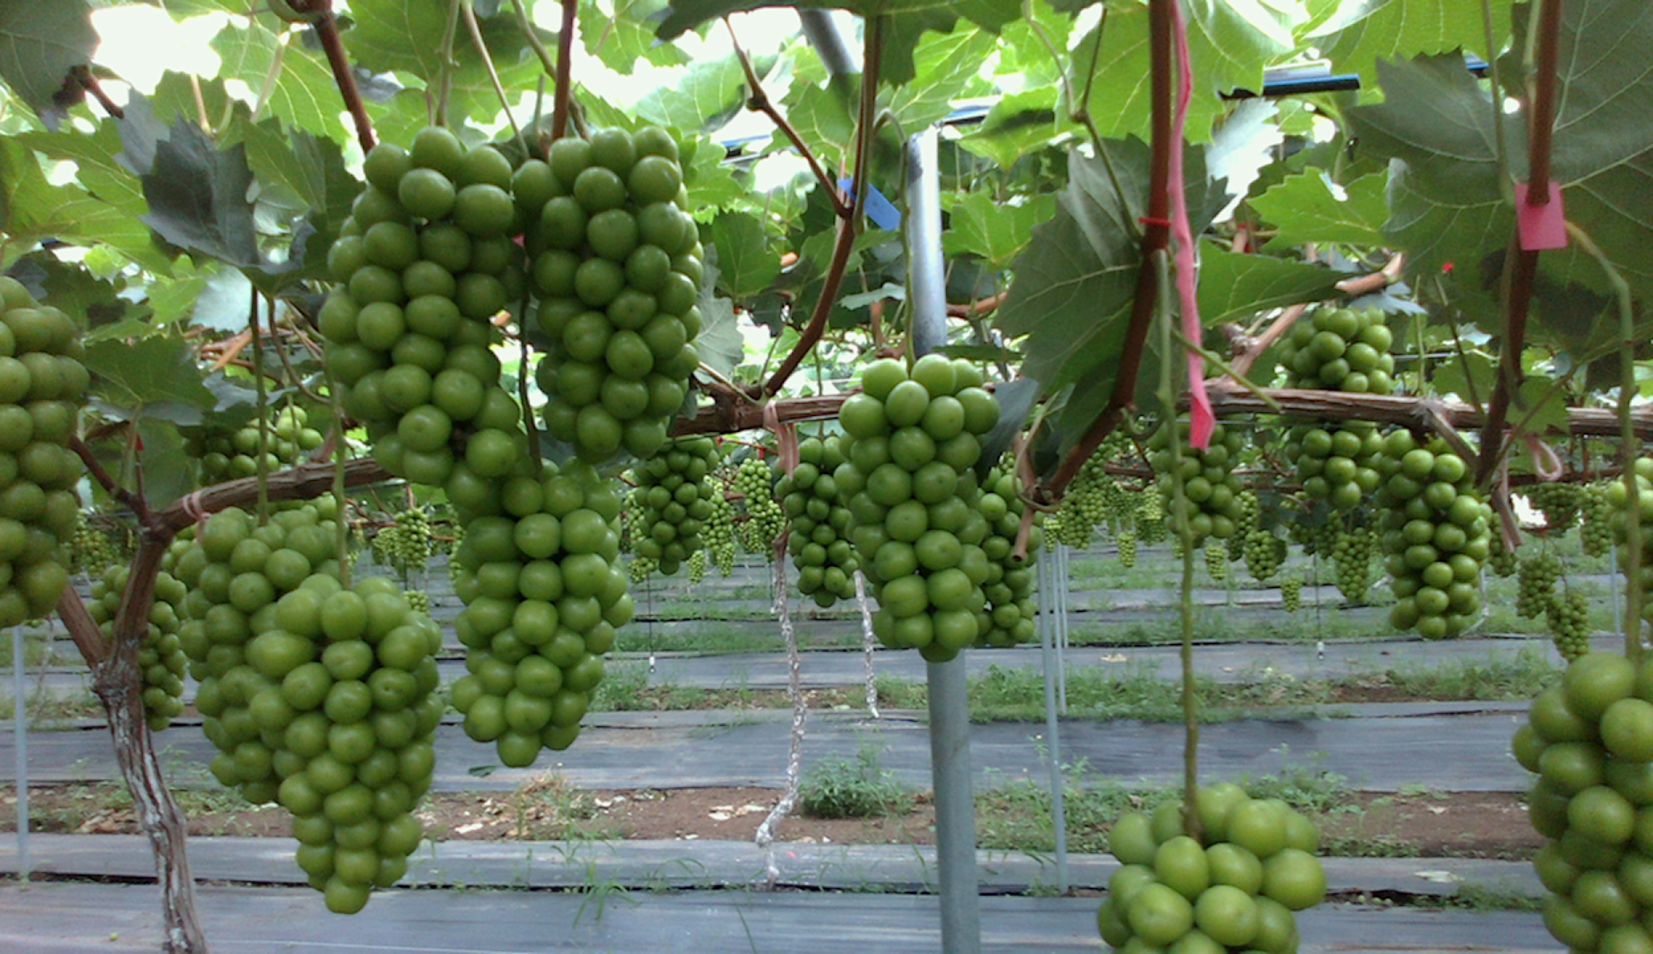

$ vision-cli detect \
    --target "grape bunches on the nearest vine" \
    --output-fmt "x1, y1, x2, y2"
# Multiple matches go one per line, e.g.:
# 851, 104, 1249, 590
1095, 784, 1323, 953
0, 274, 93, 629
319, 126, 527, 505
513, 125, 703, 462
1511, 649, 1652, 953
450, 429, 633, 767
836, 352, 1001, 662
177, 506, 338, 803
242, 574, 444, 916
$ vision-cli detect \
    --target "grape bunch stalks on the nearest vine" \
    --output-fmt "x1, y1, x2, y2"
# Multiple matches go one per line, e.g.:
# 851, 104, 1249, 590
322, 343, 352, 590
1152, 252, 1205, 843
869, 110, 915, 374
437, 24, 458, 126
518, 293, 542, 481
1563, 219, 1642, 664
248, 282, 268, 527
